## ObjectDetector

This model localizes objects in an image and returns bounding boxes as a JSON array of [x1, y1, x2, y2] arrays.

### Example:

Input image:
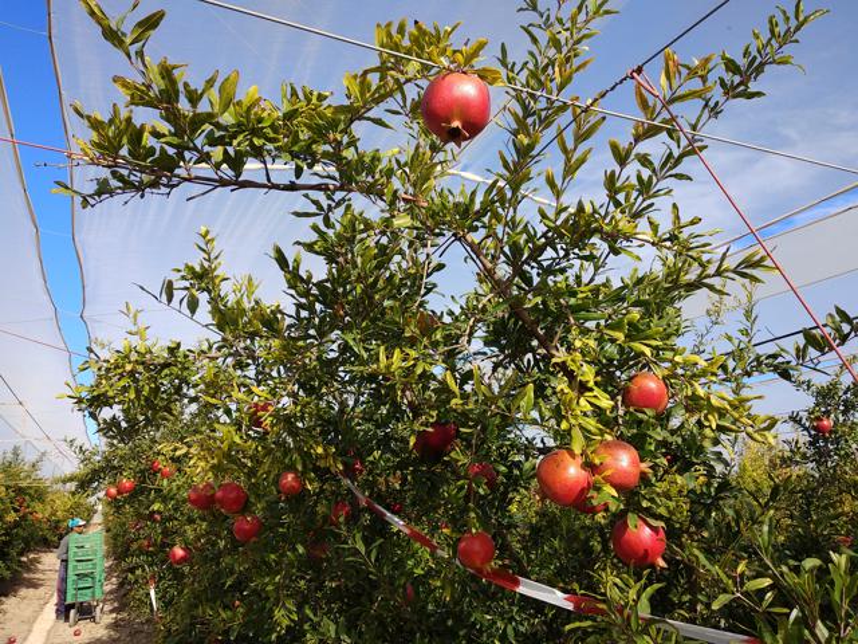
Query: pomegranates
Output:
[[160, 466, 173, 479], [328, 500, 353, 526], [814, 417, 833, 437], [278, 470, 303, 500], [467, 460, 497, 488], [623, 372, 669, 416], [572, 500, 607, 514], [232, 514, 263, 543], [105, 486, 118, 500], [611, 514, 670, 574], [117, 480, 135, 495], [252, 401, 272, 428], [150, 459, 162, 472], [188, 482, 217, 510], [170, 545, 192, 565], [214, 482, 249, 513], [416, 424, 457, 456], [420, 70, 491, 146], [590, 439, 654, 494], [454, 531, 499, 574], [531, 449, 594, 506]]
